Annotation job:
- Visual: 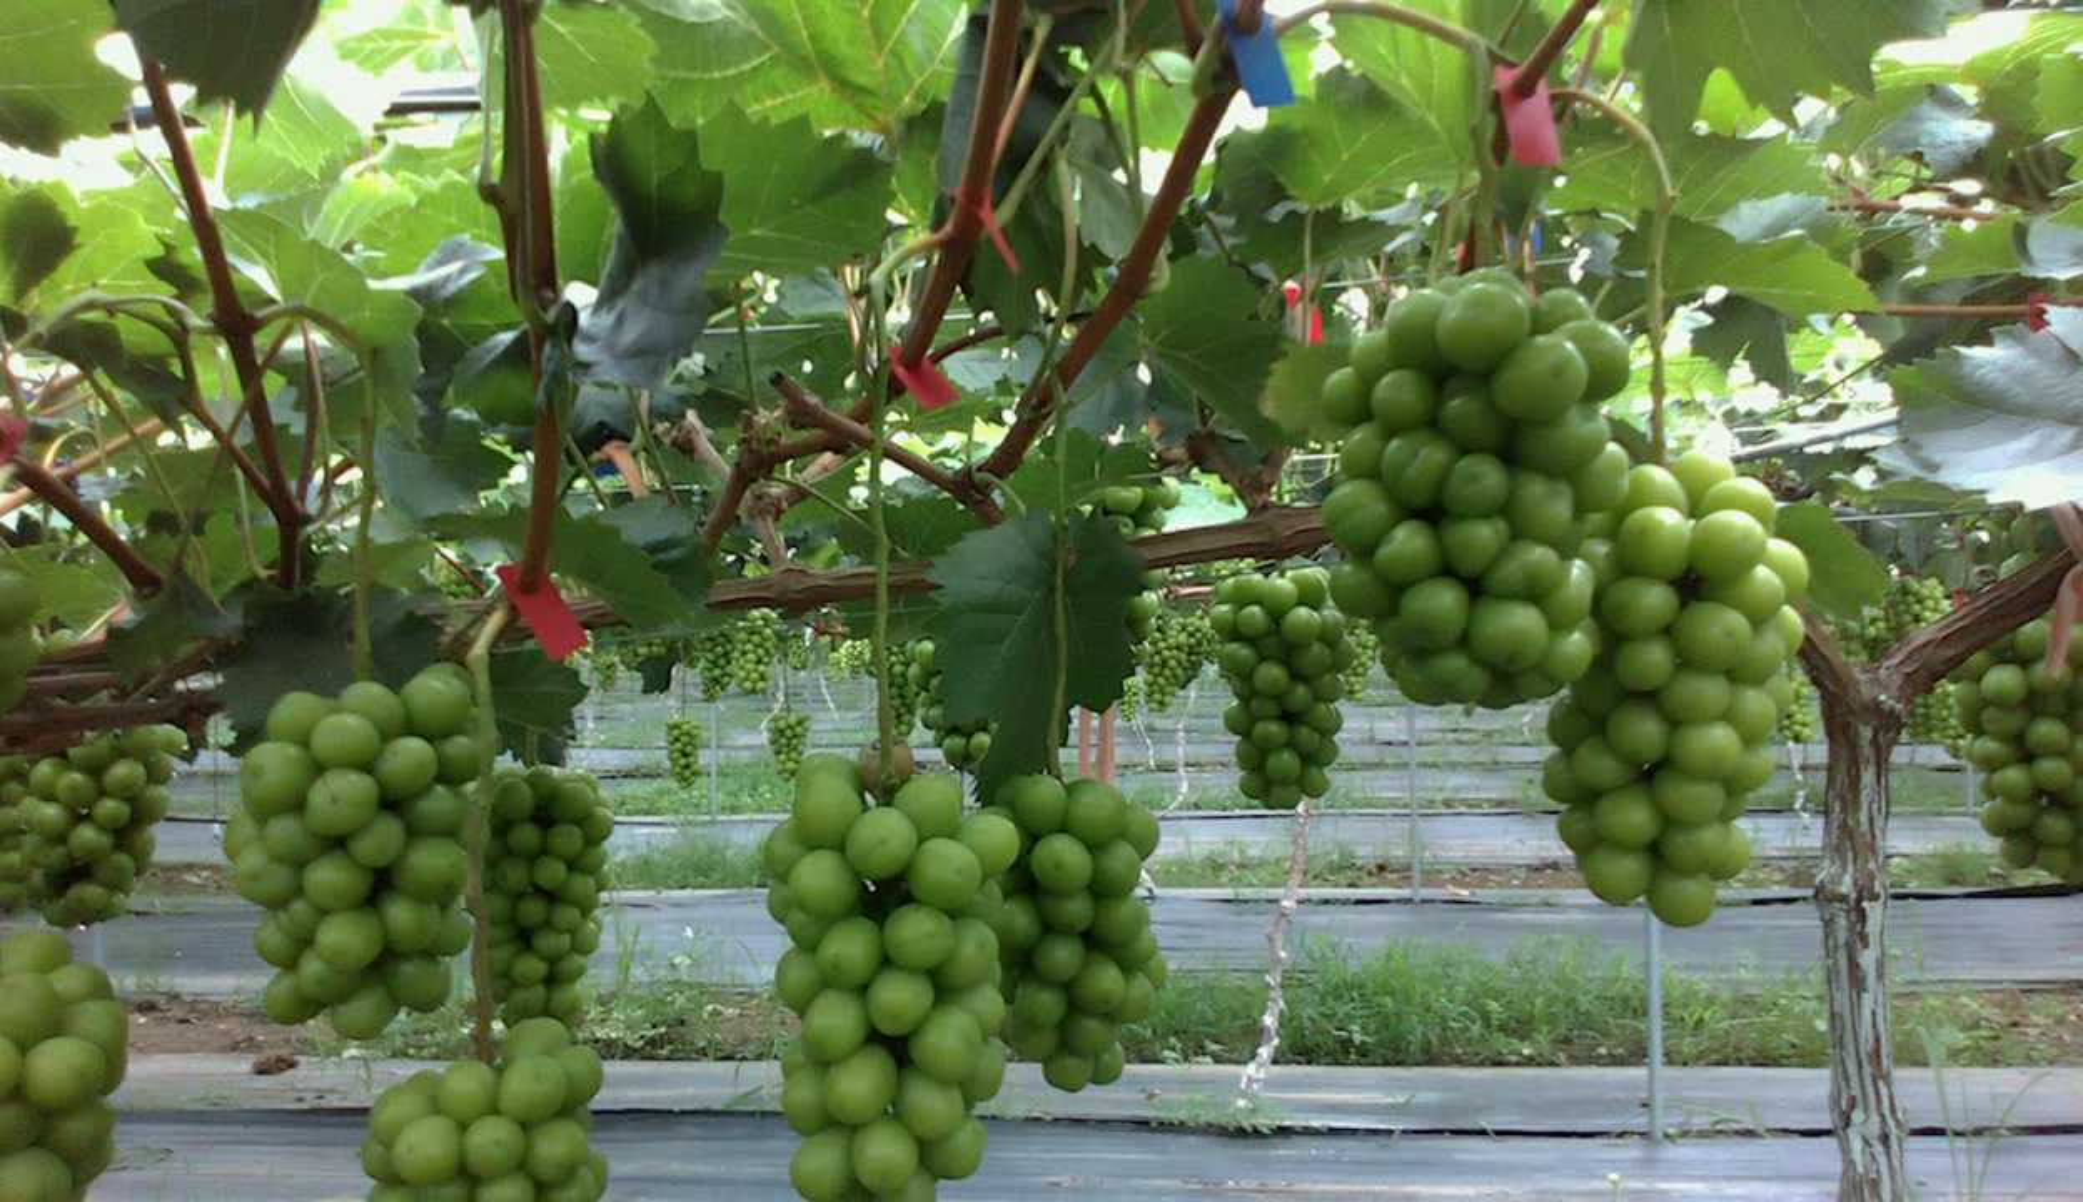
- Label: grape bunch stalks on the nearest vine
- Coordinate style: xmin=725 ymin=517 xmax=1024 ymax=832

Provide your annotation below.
xmin=1047 ymin=359 xmax=1068 ymax=783
xmin=462 ymin=603 xmax=516 ymax=1070
xmin=252 ymin=304 xmax=379 ymax=681
xmin=1551 ymin=85 xmax=1681 ymax=467
xmin=866 ymin=230 xmax=940 ymax=806
xmin=1272 ymin=0 xmax=1499 ymax=270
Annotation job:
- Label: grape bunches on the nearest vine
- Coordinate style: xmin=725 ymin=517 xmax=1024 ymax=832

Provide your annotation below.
xmin=1541 ymin=446 xmax=1809 ymax=930
xmin=761 ymin=736 xmax=1020 ymax=1200
xmin=222 ymin=663 xmax=479 ymax=1042
xmin=1319 ymin=267 xmax=1632 ymax=711
xmin=362 ymin=1017 xmax=609 ymax=1200
xmin=0 ymin=928 xmax=130 ymax=1200
xmin=973 ymin=775 xmax=1168 ymax=1093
